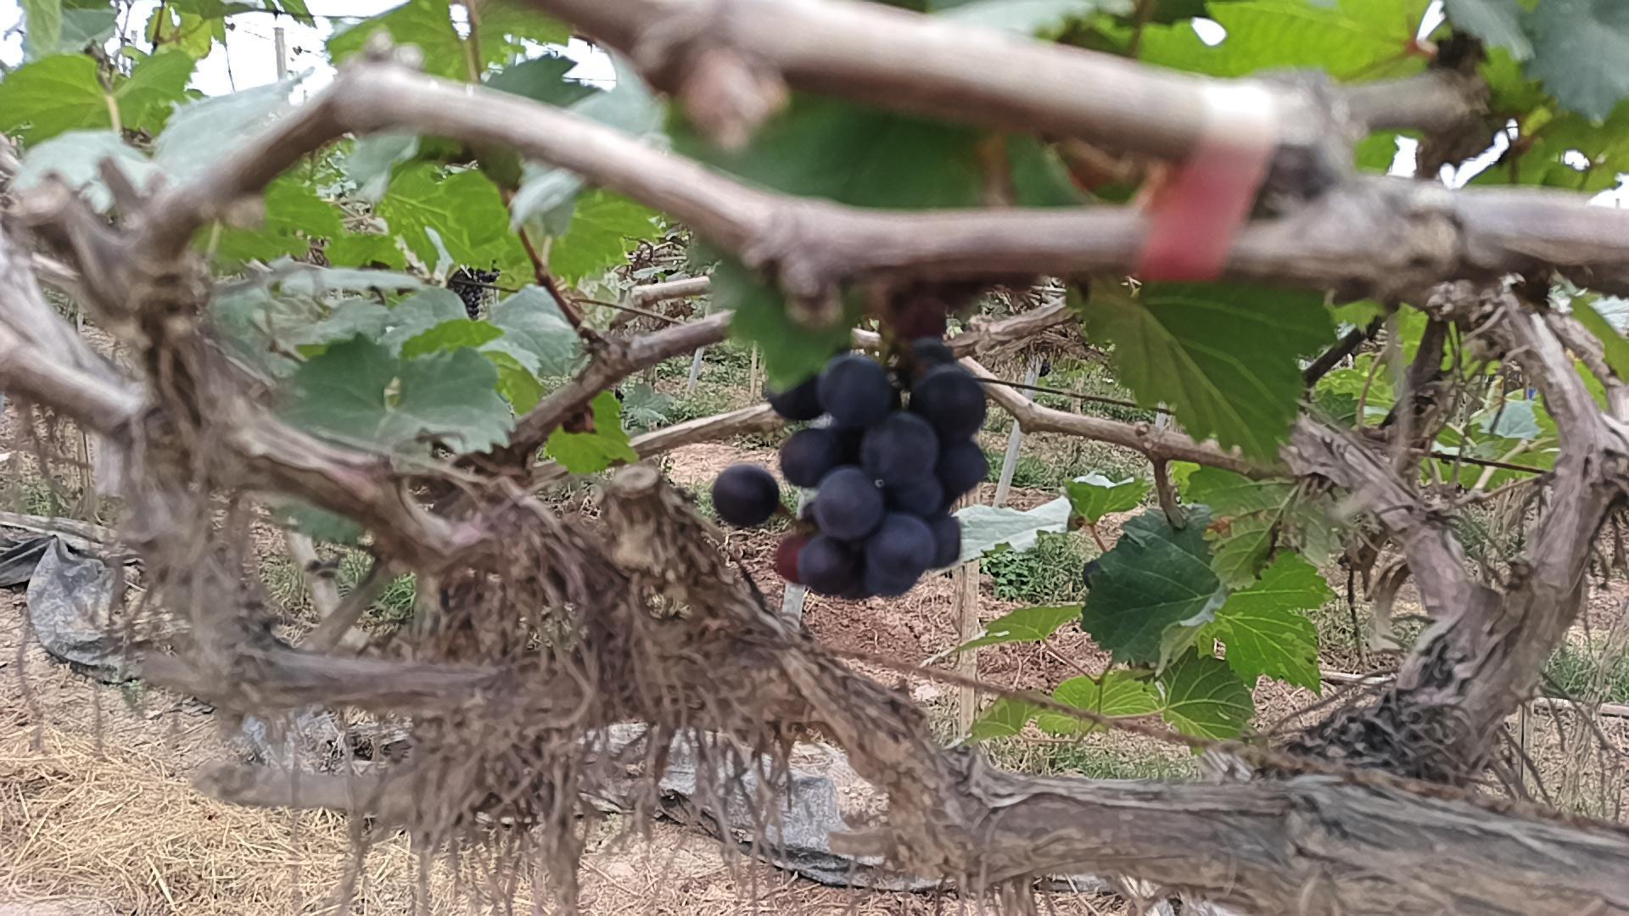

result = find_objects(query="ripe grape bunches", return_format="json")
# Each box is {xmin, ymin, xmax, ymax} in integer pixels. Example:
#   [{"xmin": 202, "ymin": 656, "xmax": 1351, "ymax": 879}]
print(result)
[
  {"xmin": 712, "ymin": 338, "xmax": 987, "ymax": 599},
  {"xmin": 447, "ymin": 266, "xmax": 500, "ymax": 319}
]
